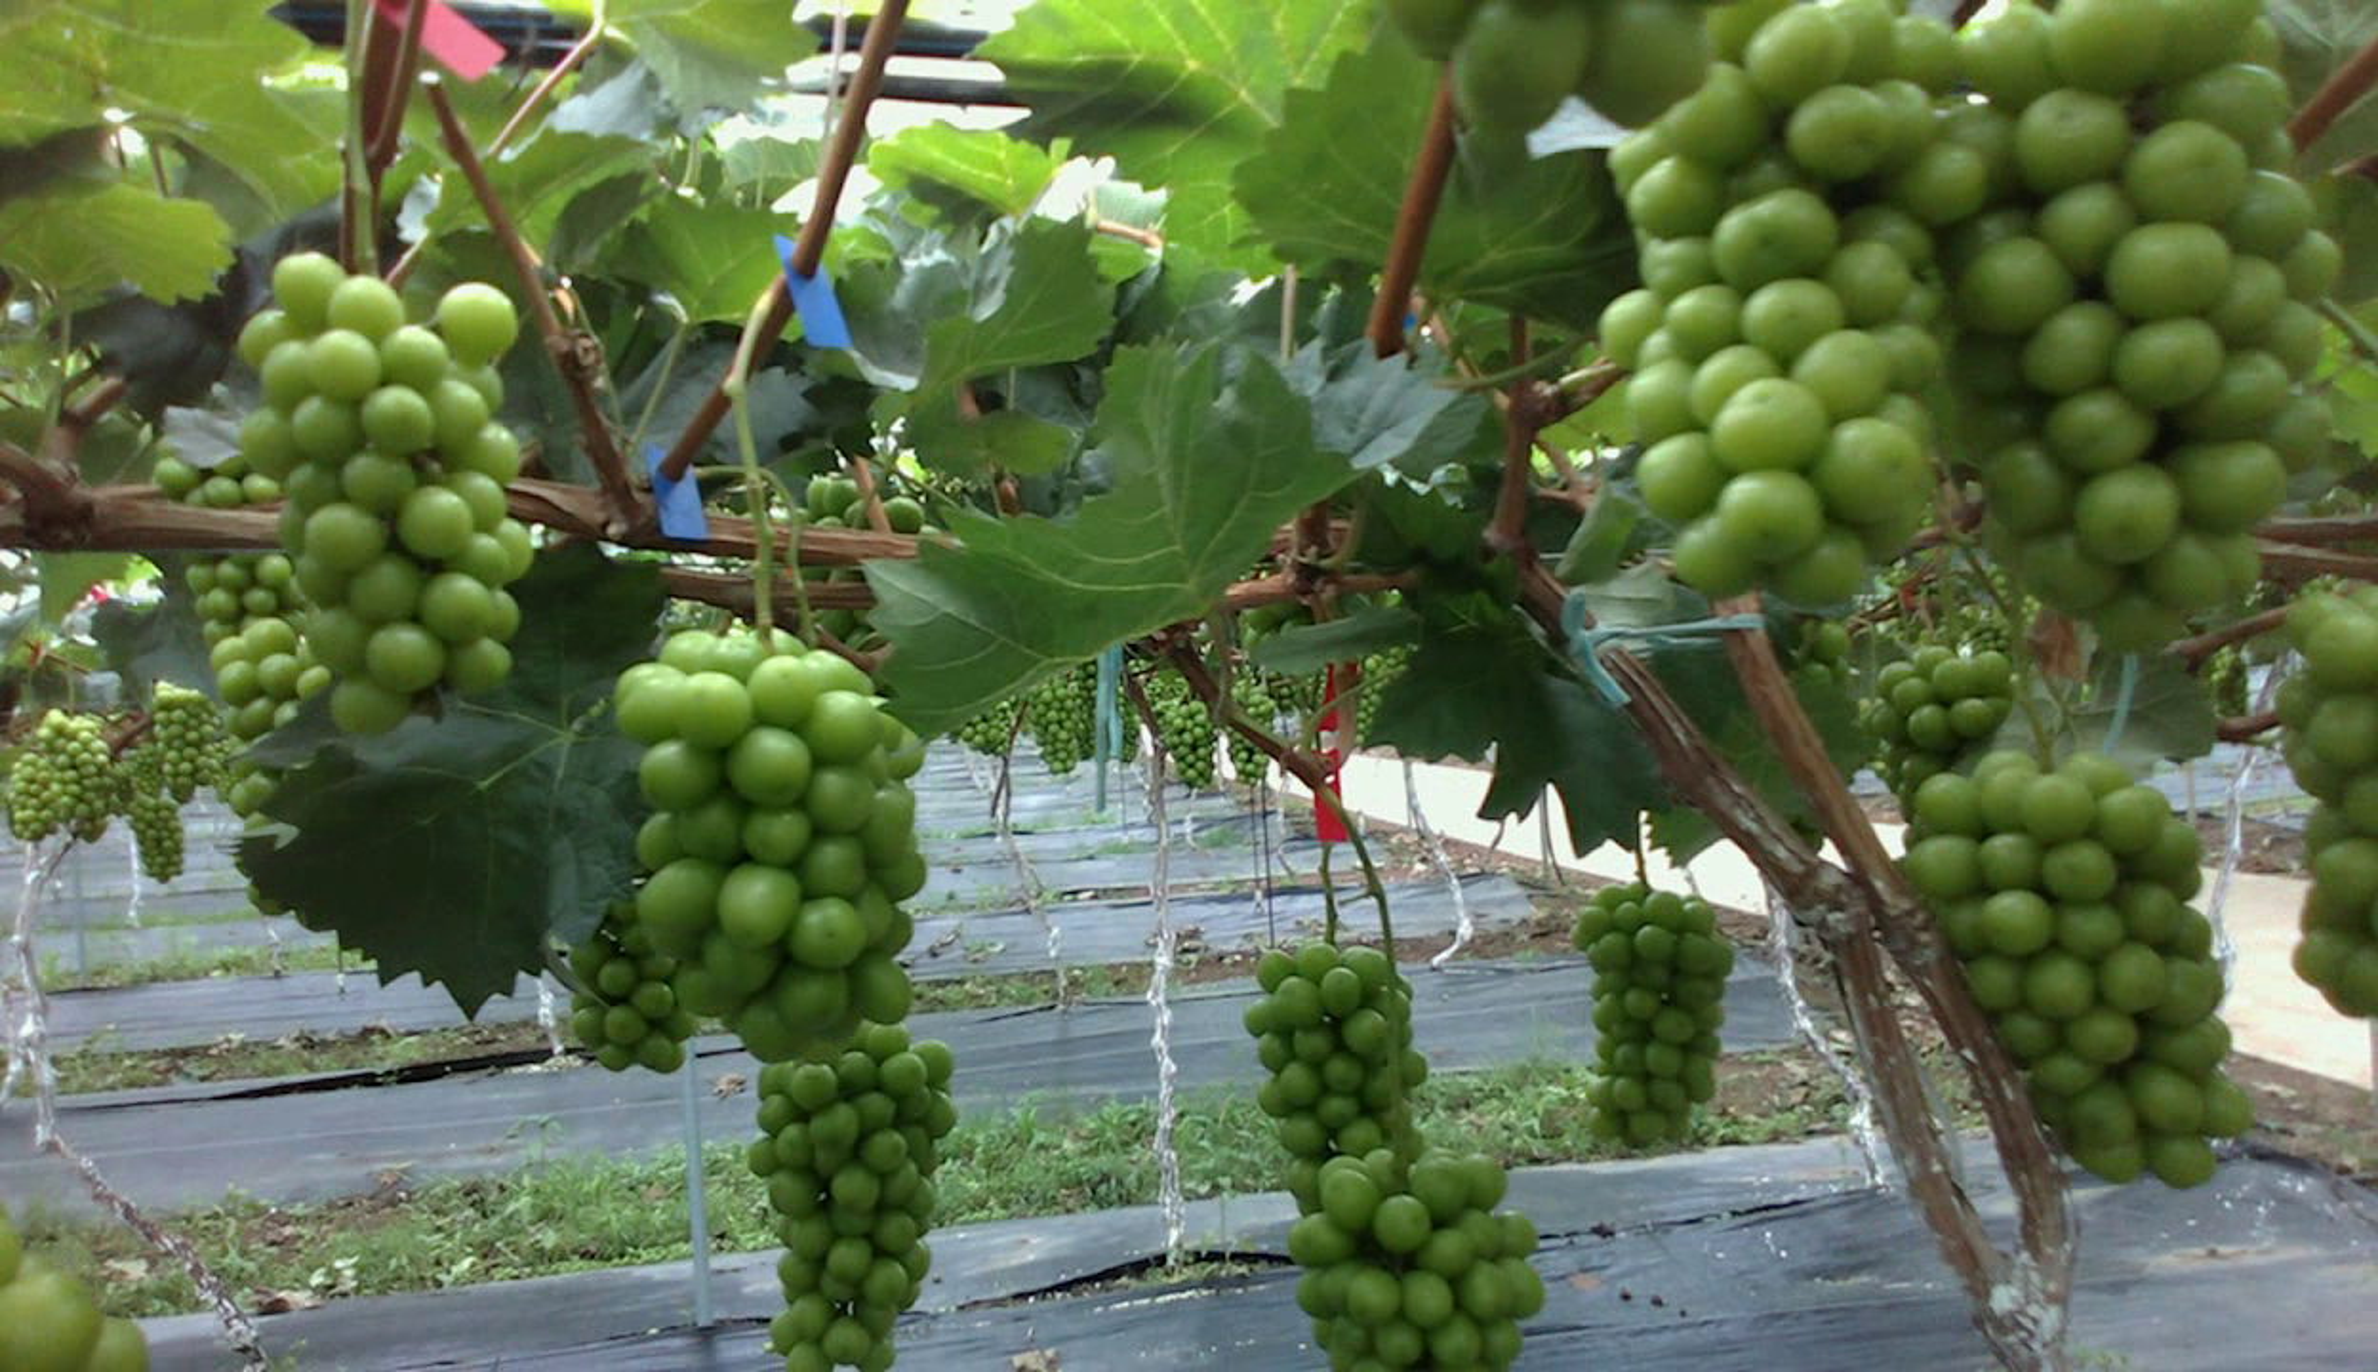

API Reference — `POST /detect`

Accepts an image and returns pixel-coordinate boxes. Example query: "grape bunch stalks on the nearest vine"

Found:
[349,0,379,276]
[1317,787,1412,1183]
[2008,602,2052,772]
[726,292,777,638]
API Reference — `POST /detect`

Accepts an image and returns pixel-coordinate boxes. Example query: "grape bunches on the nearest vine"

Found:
[1601,0,1985,610]
[1938,0,2340,654]
[1294,1147,1545,1370]
[236,257,534,734]
[2275,585,2376,1016]
[614,631,924,1067]
[1902,751,2252,1195]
